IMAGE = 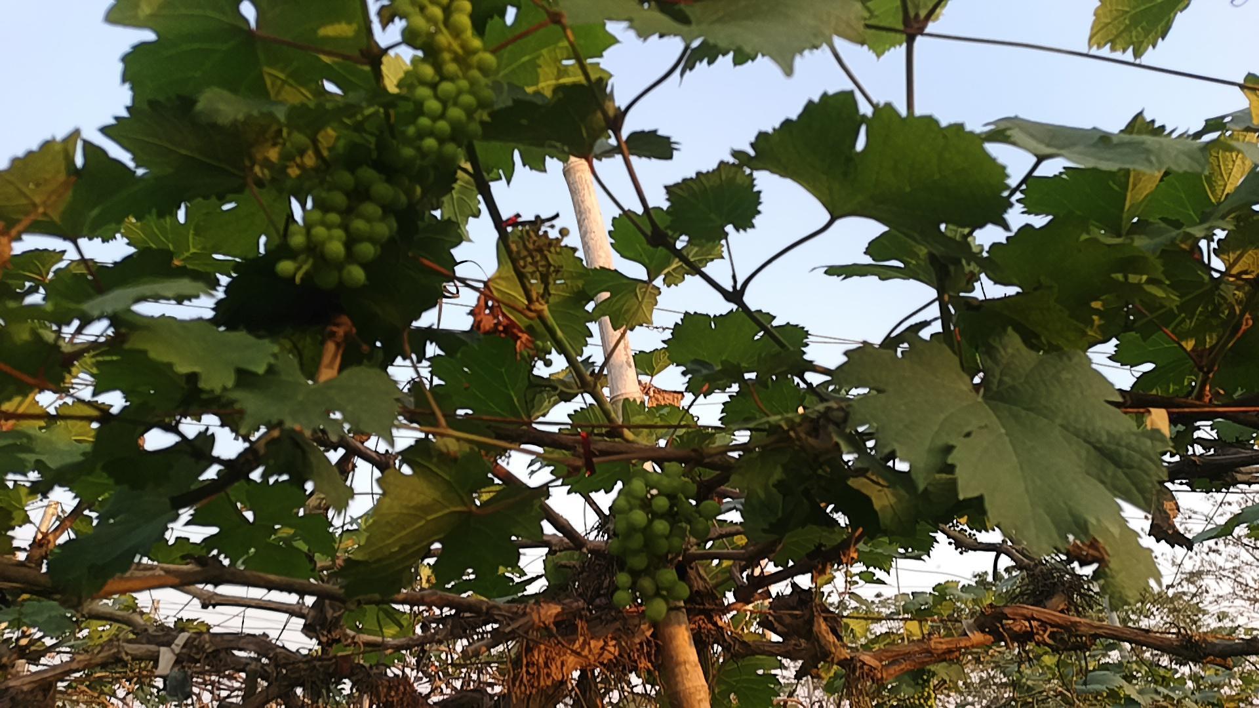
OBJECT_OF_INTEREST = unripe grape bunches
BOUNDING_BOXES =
[609,461,721,622]
[385,0,497,155]
[276,132,435,288]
